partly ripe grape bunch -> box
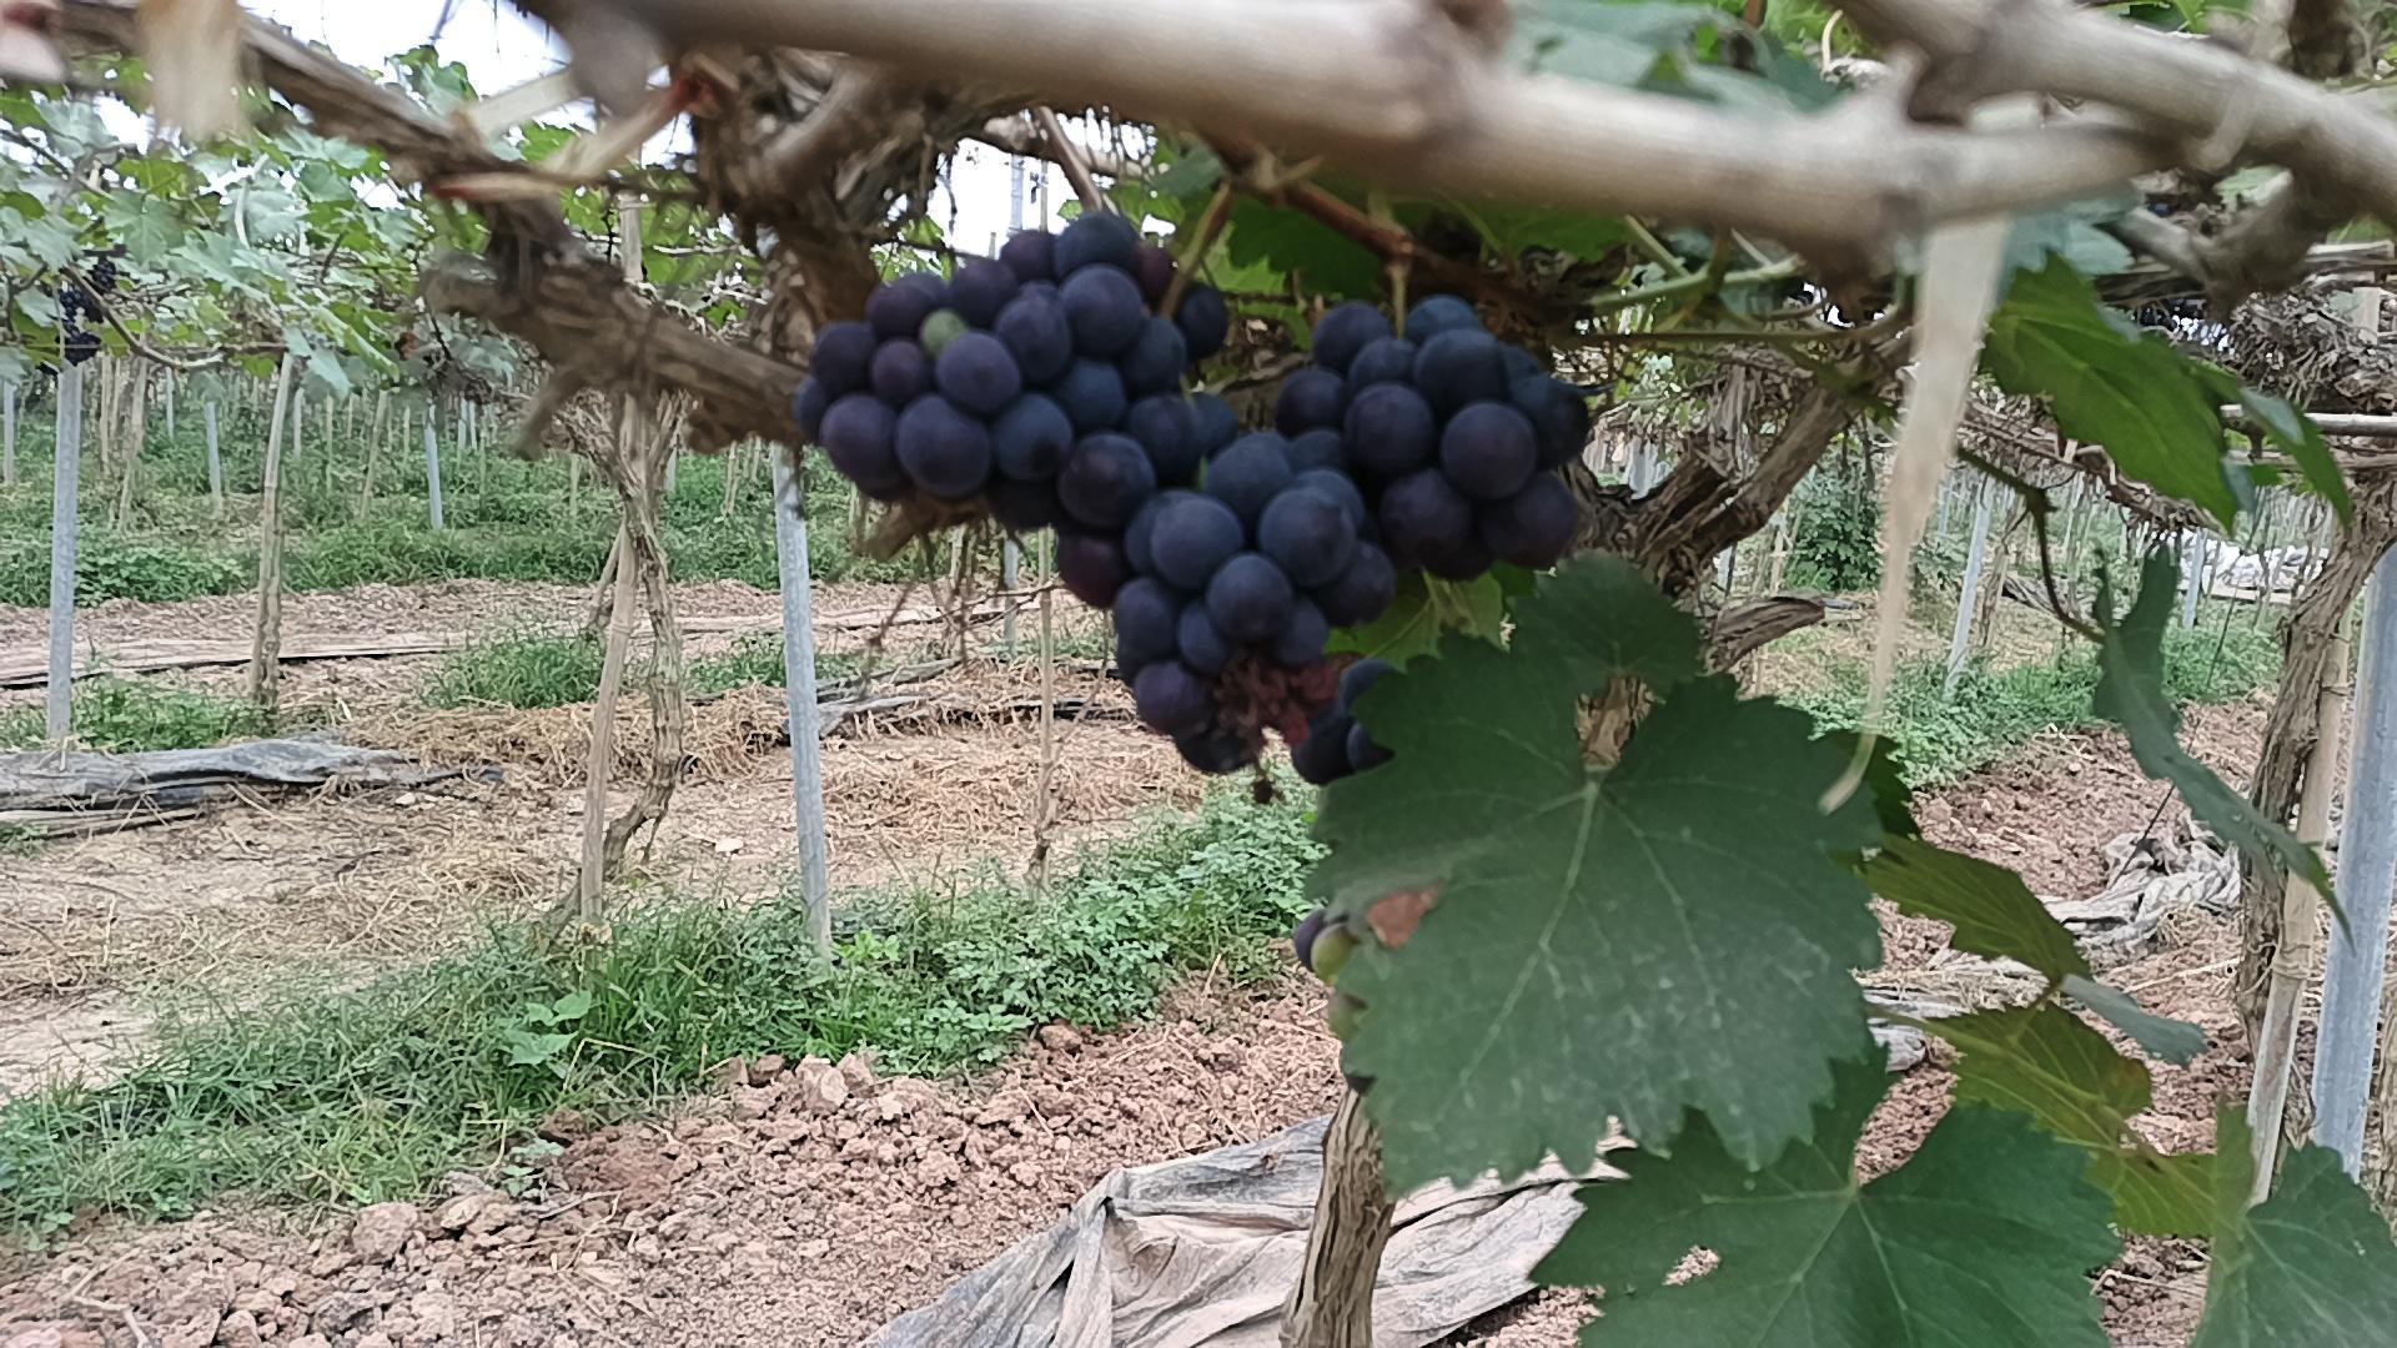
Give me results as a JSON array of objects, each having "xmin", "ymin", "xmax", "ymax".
[{"xmin": 1292, "ymin": 659, "xmax": 1407, "ymax": 1095}]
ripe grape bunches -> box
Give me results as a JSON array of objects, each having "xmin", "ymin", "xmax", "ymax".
[
  {"xmin": 790, "ymin": 211, "xmax": 1397, "ymax": 774},
  {"xmin": 1276, "ymin": 295, "xmax": 1591, "ymax": 579}
]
